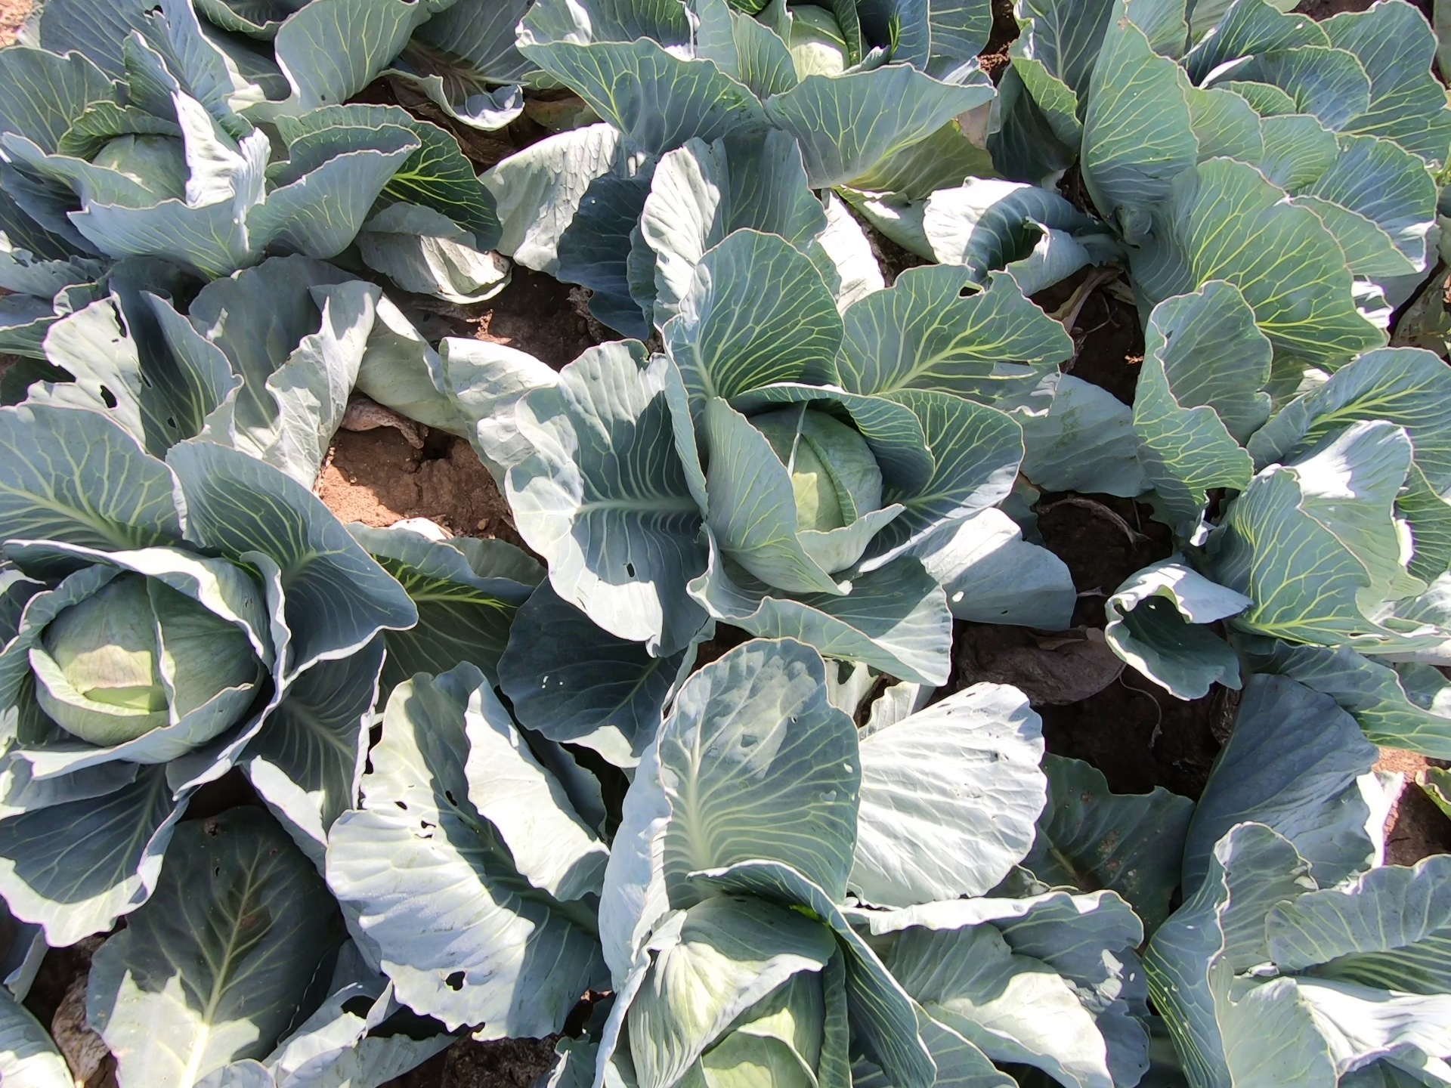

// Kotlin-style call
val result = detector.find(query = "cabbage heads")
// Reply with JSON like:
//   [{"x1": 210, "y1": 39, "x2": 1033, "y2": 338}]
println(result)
[
  {"x1": 630, "y1": 904, "x2": 842, "y2": 1086},
  {"x1": 38, "y1": 564, "x2": 258, "y2": 745},
  {"x1": 723, "y1": 409, "x2": 884, "y2": 575},
  {"x1": 1249, "y1": 983, "x2": 1443, "y2": 1086},
  {"x1": 1282, "y1": 496, "x2": 1411, "y2": 612},
  {"x1": 753, "y1": 2, "x2": 870, "y2": 117},
  {"x1": 83, "y1": 125, "x2": 234, "y2": 243}
]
